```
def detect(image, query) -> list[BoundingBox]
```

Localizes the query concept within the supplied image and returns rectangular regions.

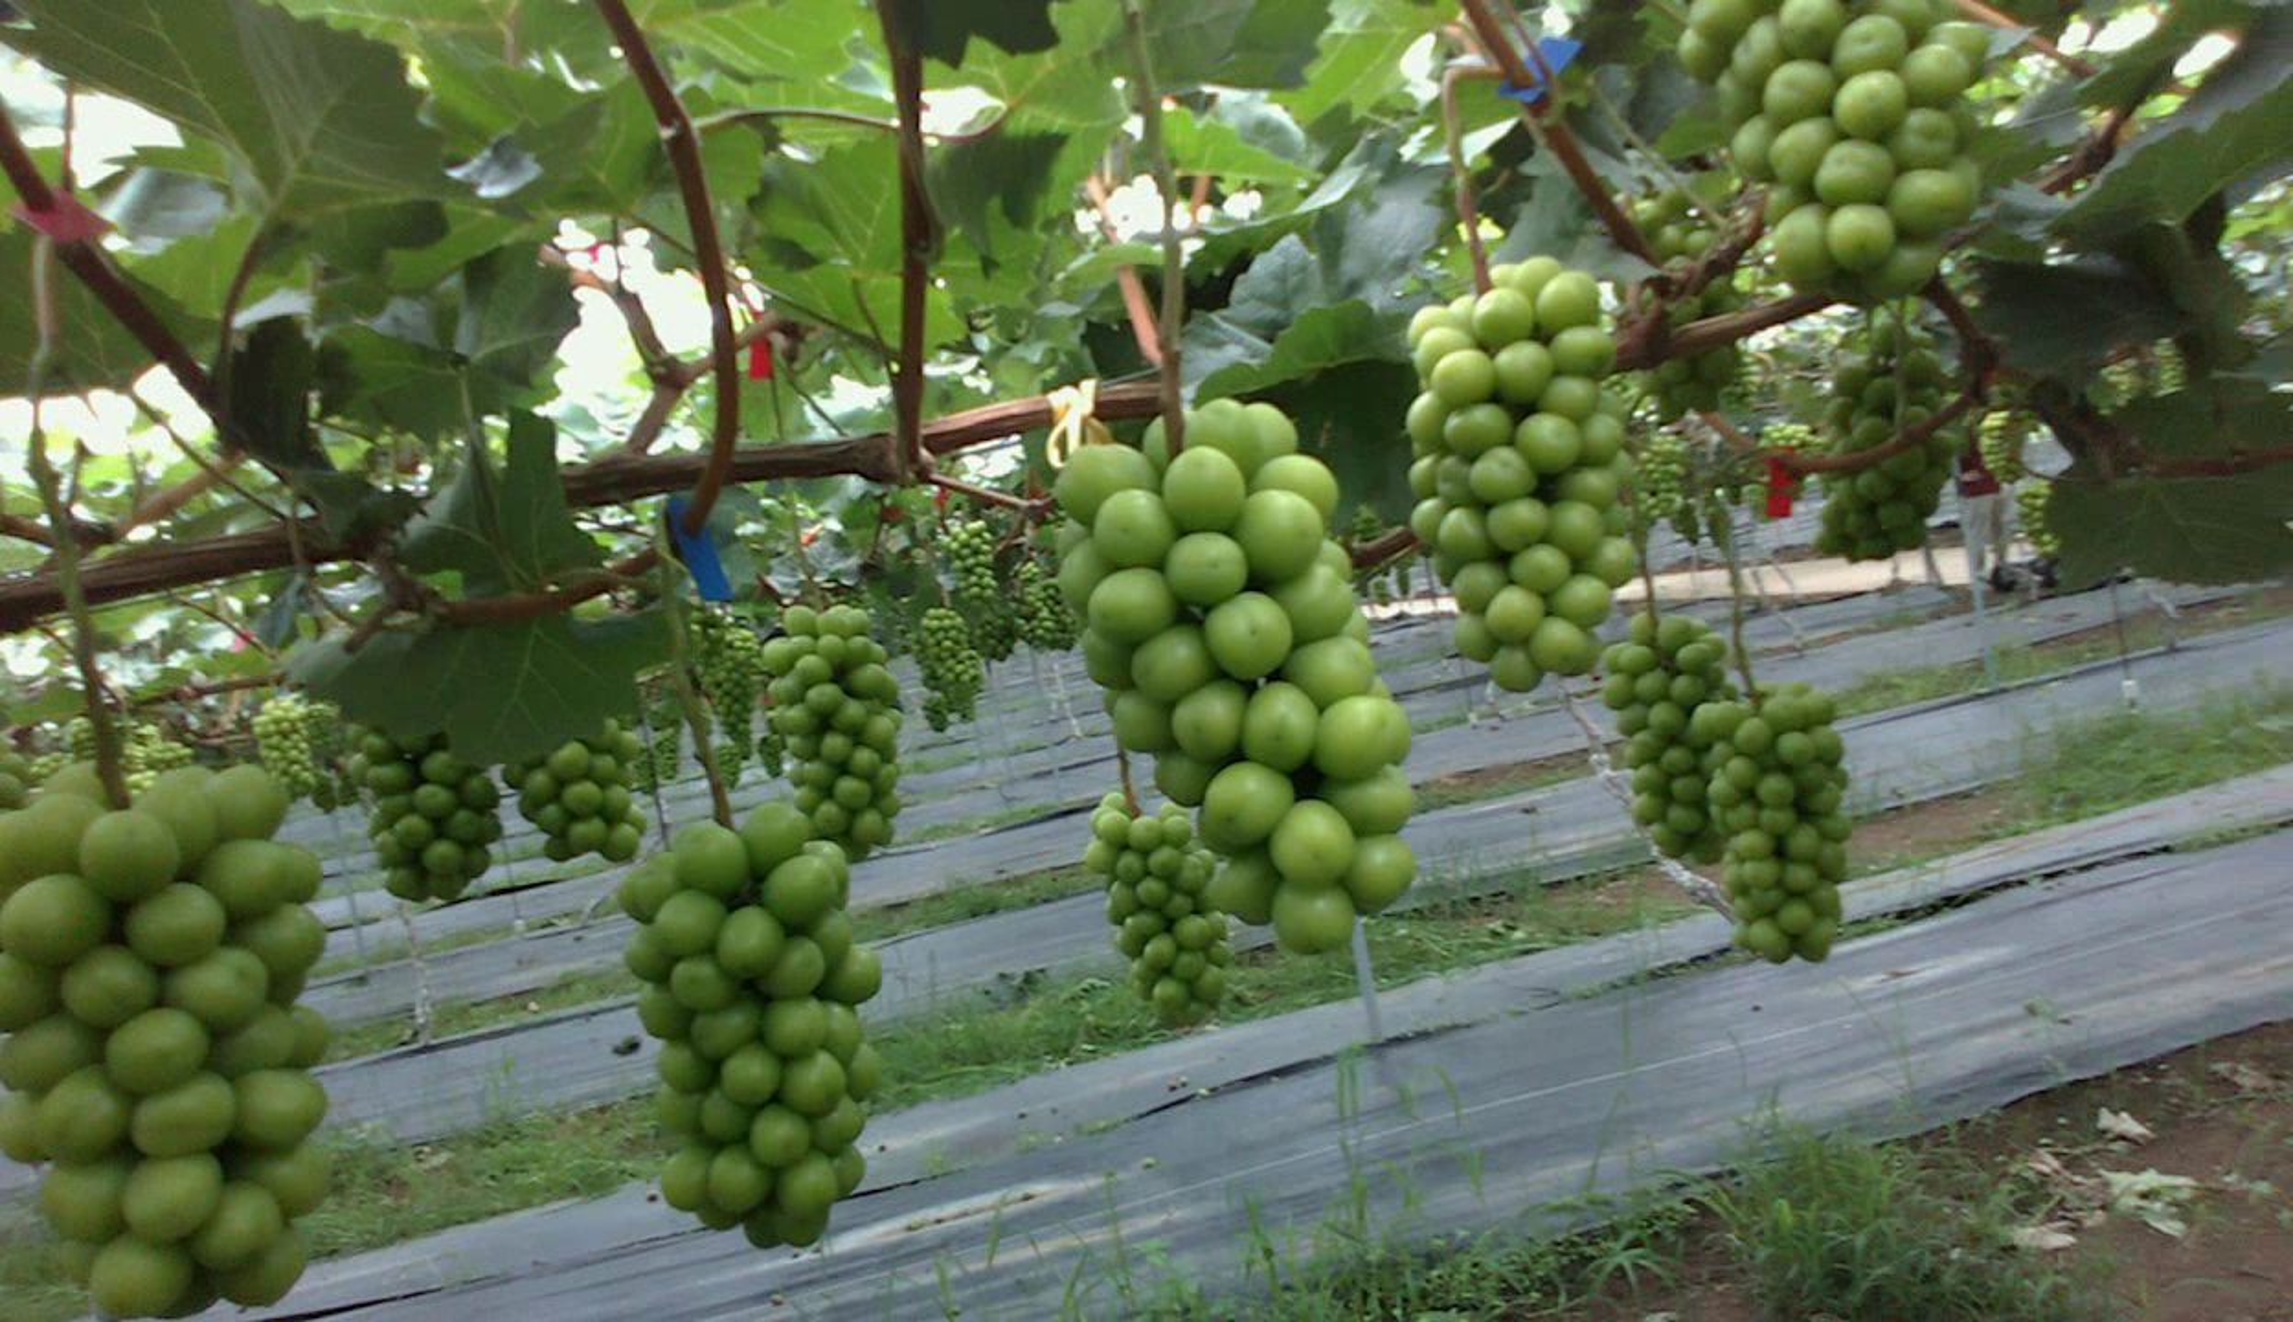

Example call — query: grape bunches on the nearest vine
[1055,397,1417,958]
[1404,253,1639,690]
[621,804,878,1249]
[0,762,331,1320]
[1681,2,1988,303]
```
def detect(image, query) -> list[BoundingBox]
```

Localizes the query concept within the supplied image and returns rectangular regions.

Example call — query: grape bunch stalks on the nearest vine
[1440,62,1492,294]
[654,501,733,826]
[22,239,130,806]
[1123,4,1183,459]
